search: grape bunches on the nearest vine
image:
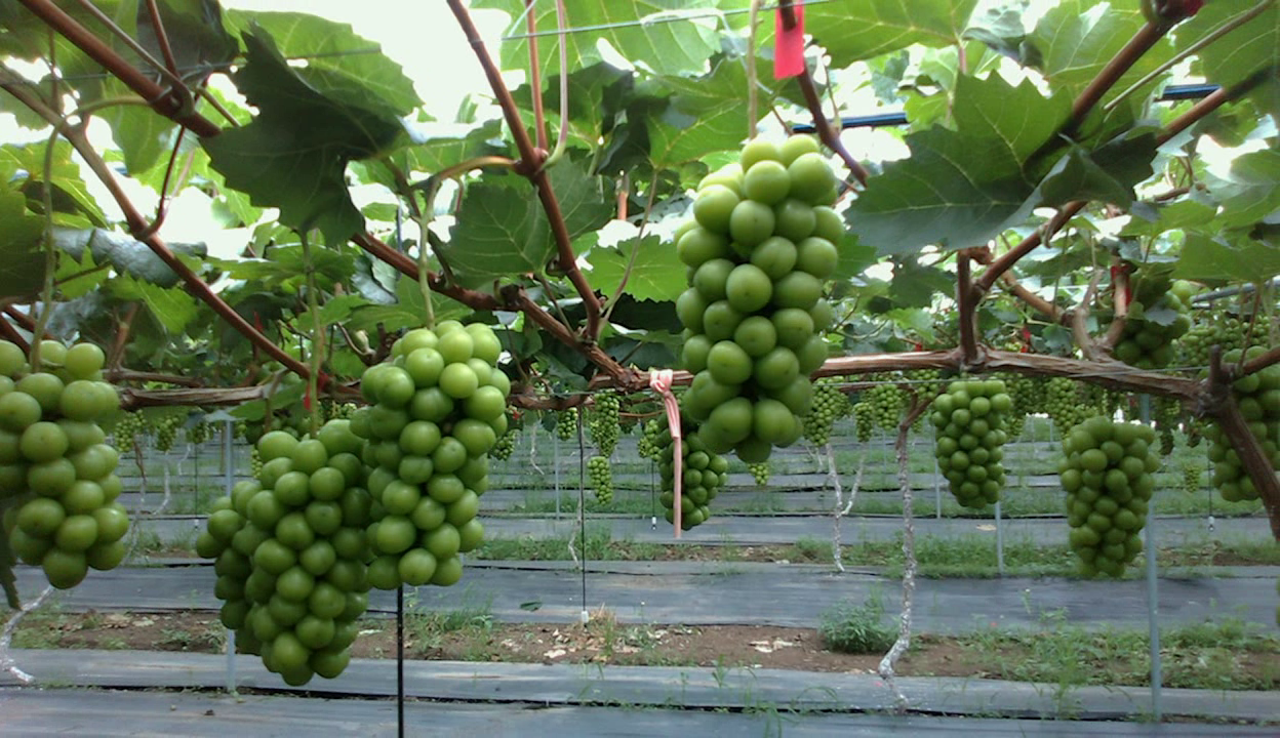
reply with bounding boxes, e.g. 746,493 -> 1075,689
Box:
0,339 -> 130,589
673,134 -> 845,464
349,319 -> 511,590
195,419 -> 376,687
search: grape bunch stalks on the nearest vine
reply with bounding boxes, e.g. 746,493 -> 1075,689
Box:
297,235 -> 323,439
418,155 -> 518,333
29,96 -> 148,374
746,1 -> 760,141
